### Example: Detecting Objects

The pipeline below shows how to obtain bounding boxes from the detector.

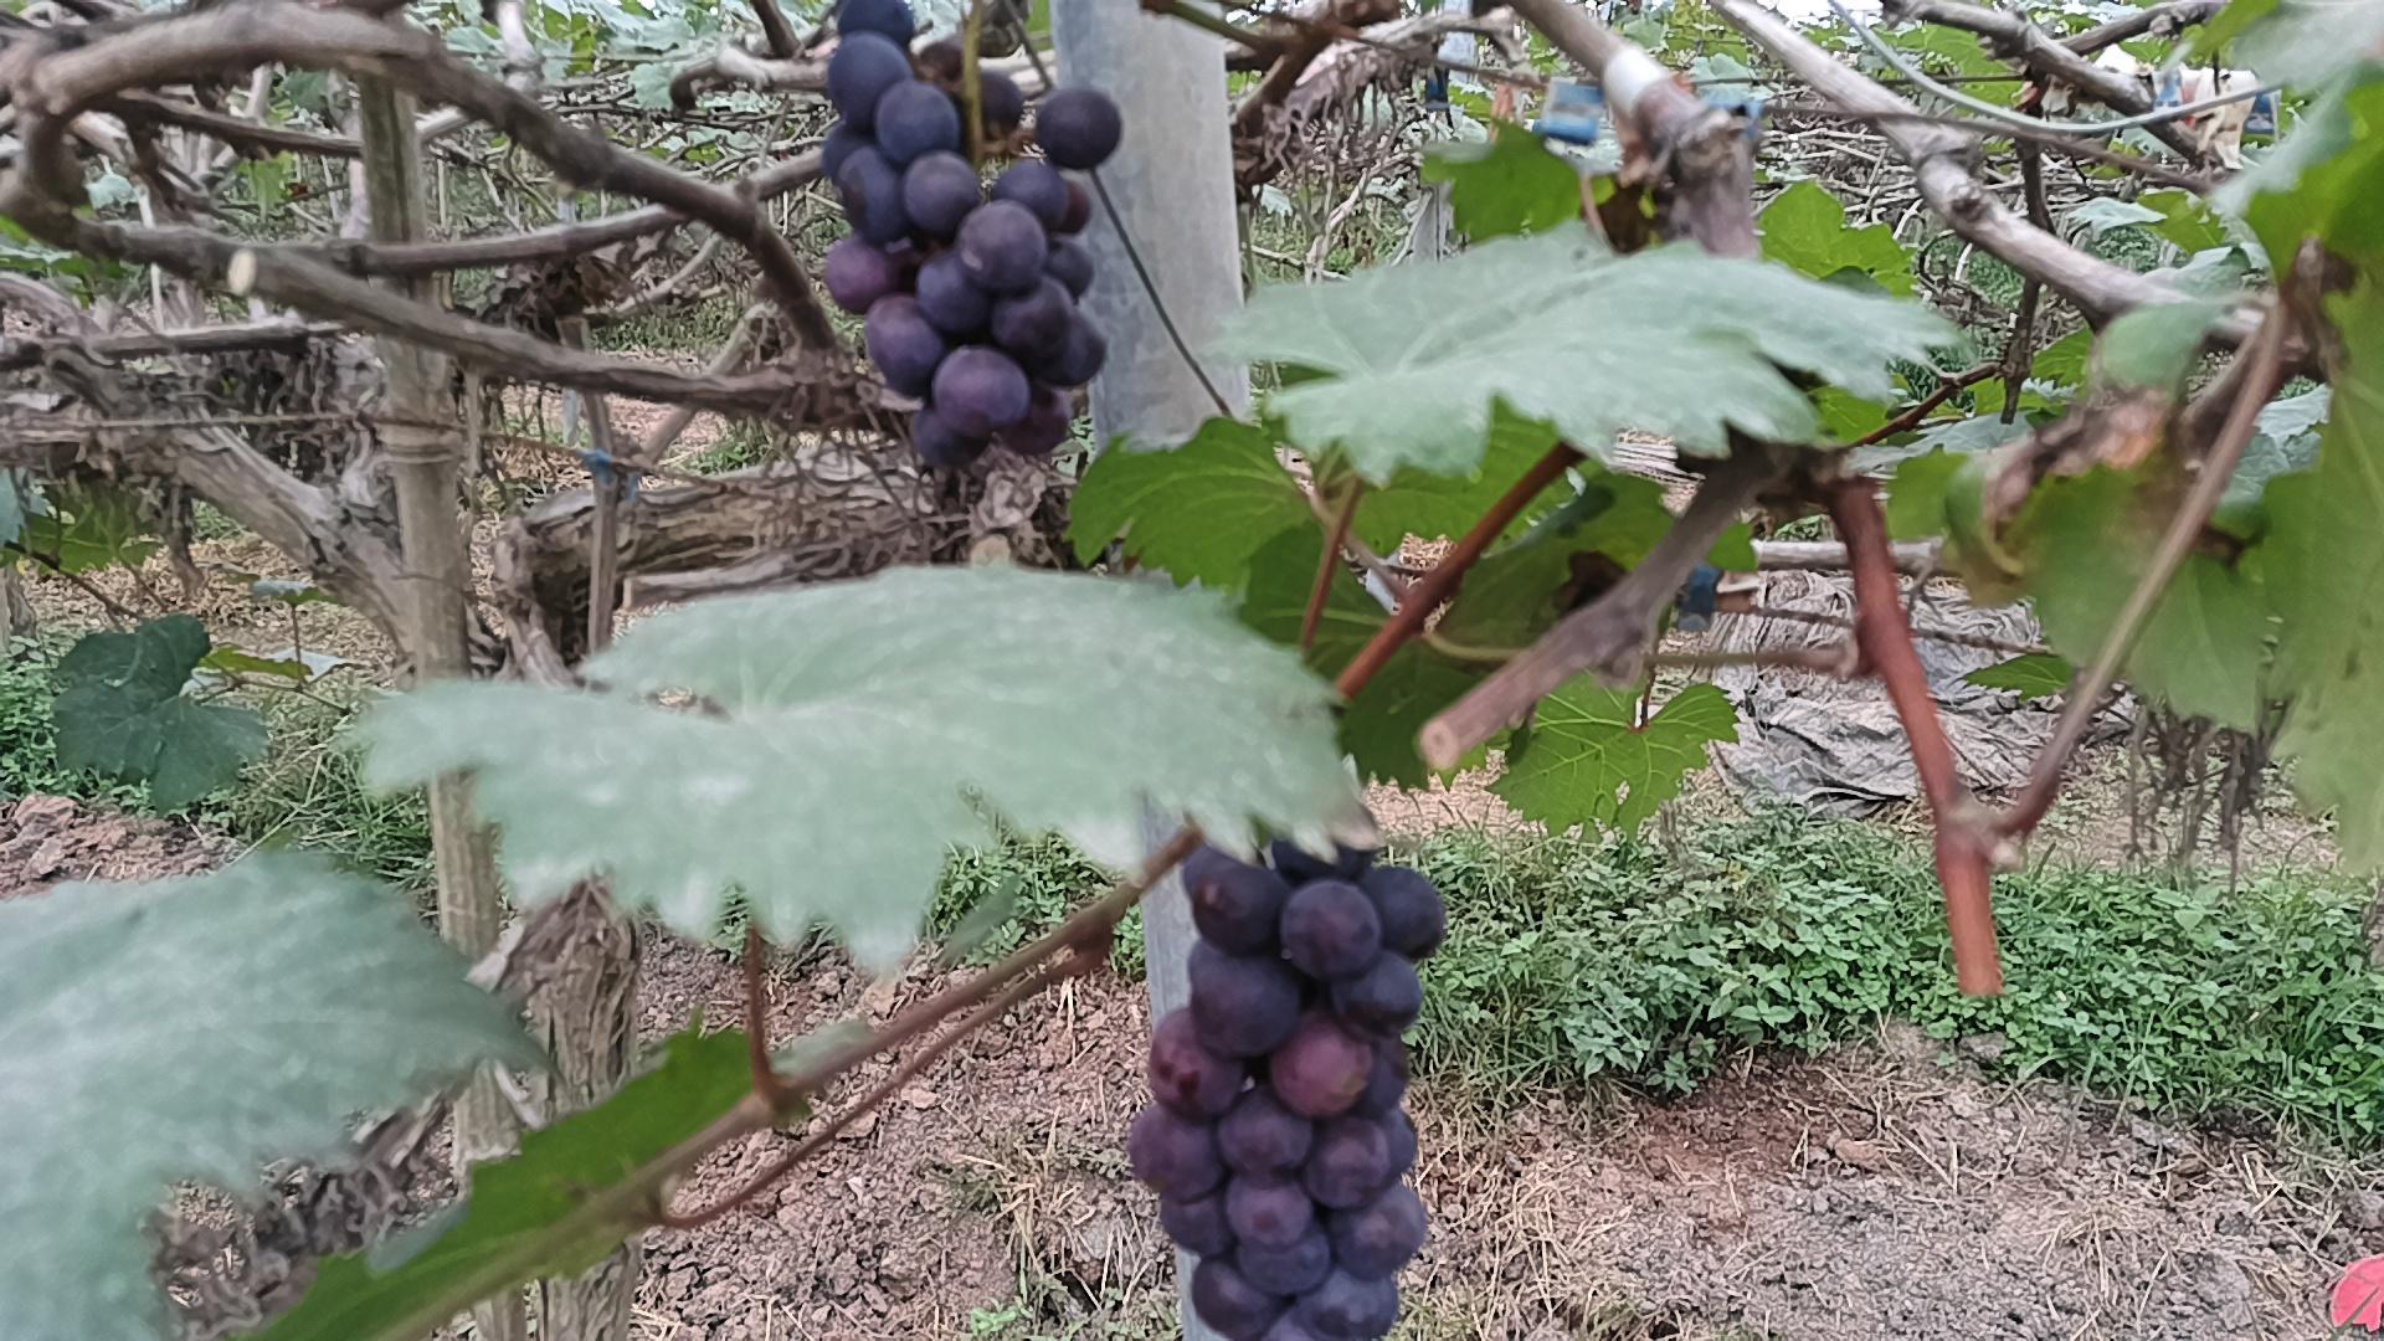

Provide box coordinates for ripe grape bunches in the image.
[822,0,1120,466]
[1127,841,1444,1340]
